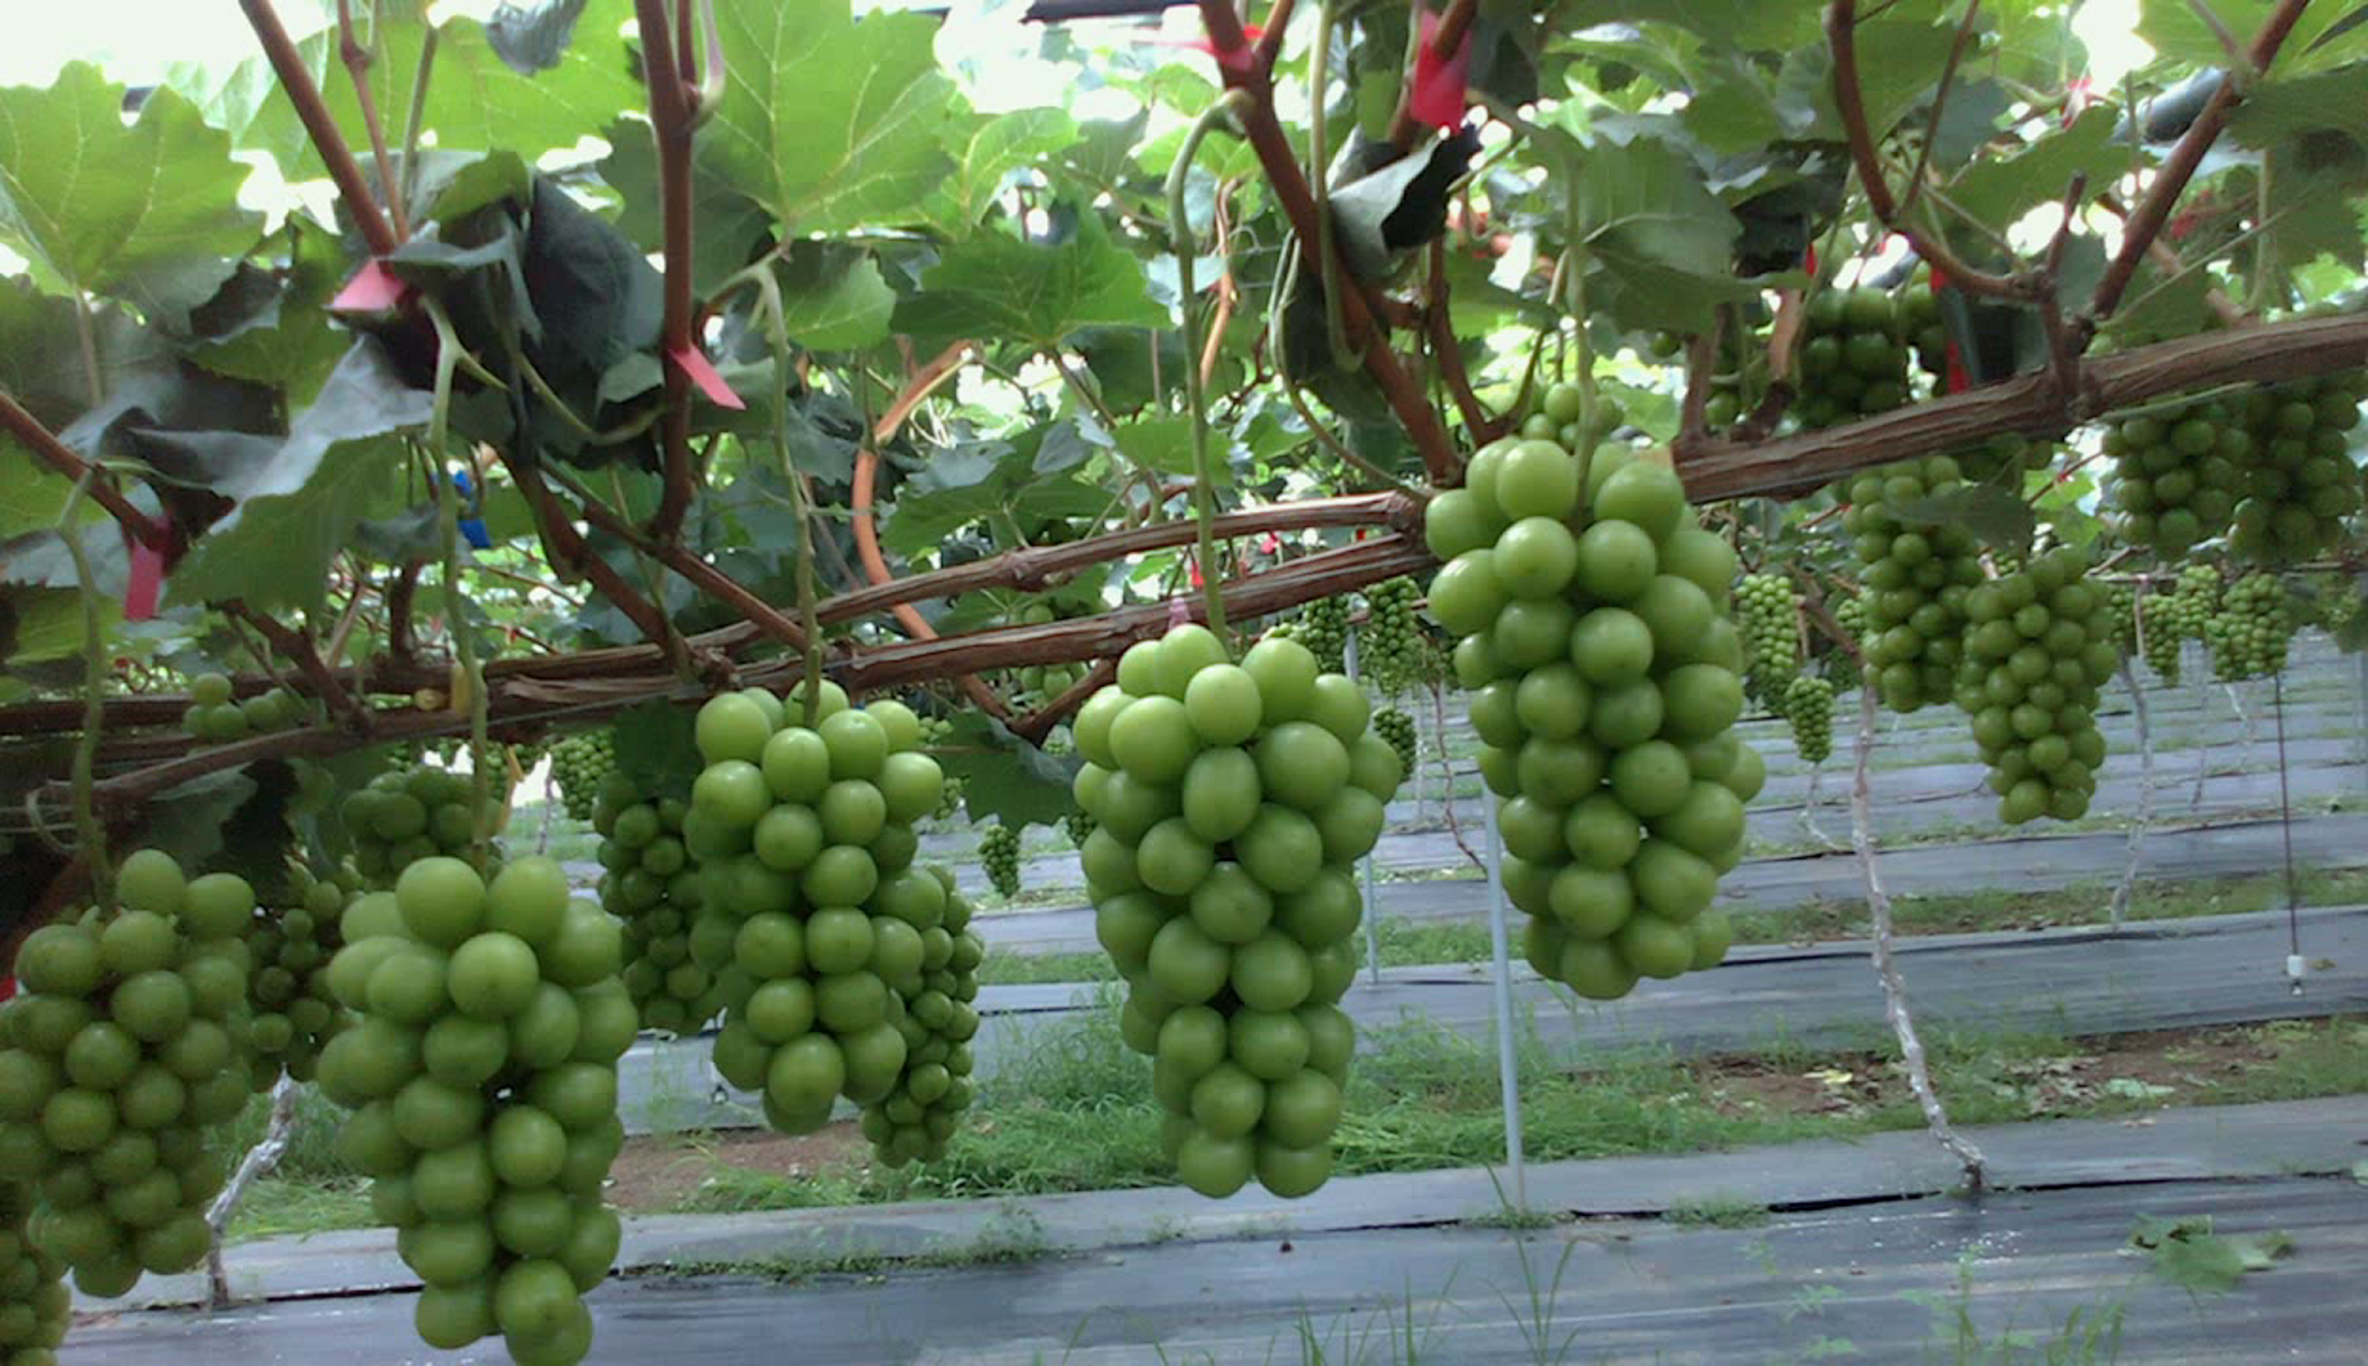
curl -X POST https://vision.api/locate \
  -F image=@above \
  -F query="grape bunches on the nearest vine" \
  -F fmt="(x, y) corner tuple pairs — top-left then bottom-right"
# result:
(317, 854), (639, 1364)
(1070, 624), (1404, 1199)
(0, 848), (260, 1300)
(1427, 436), (1768, 998)
(685, 681), (947, 1136)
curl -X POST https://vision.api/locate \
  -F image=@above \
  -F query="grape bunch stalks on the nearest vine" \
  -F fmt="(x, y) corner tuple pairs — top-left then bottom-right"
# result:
(1478, 99), (1598, 522)
(55, 465), (112, 924)
(1167, 104), (1230, 653)
(719, 266), (823, 723)
(427, 304), (501, 873)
